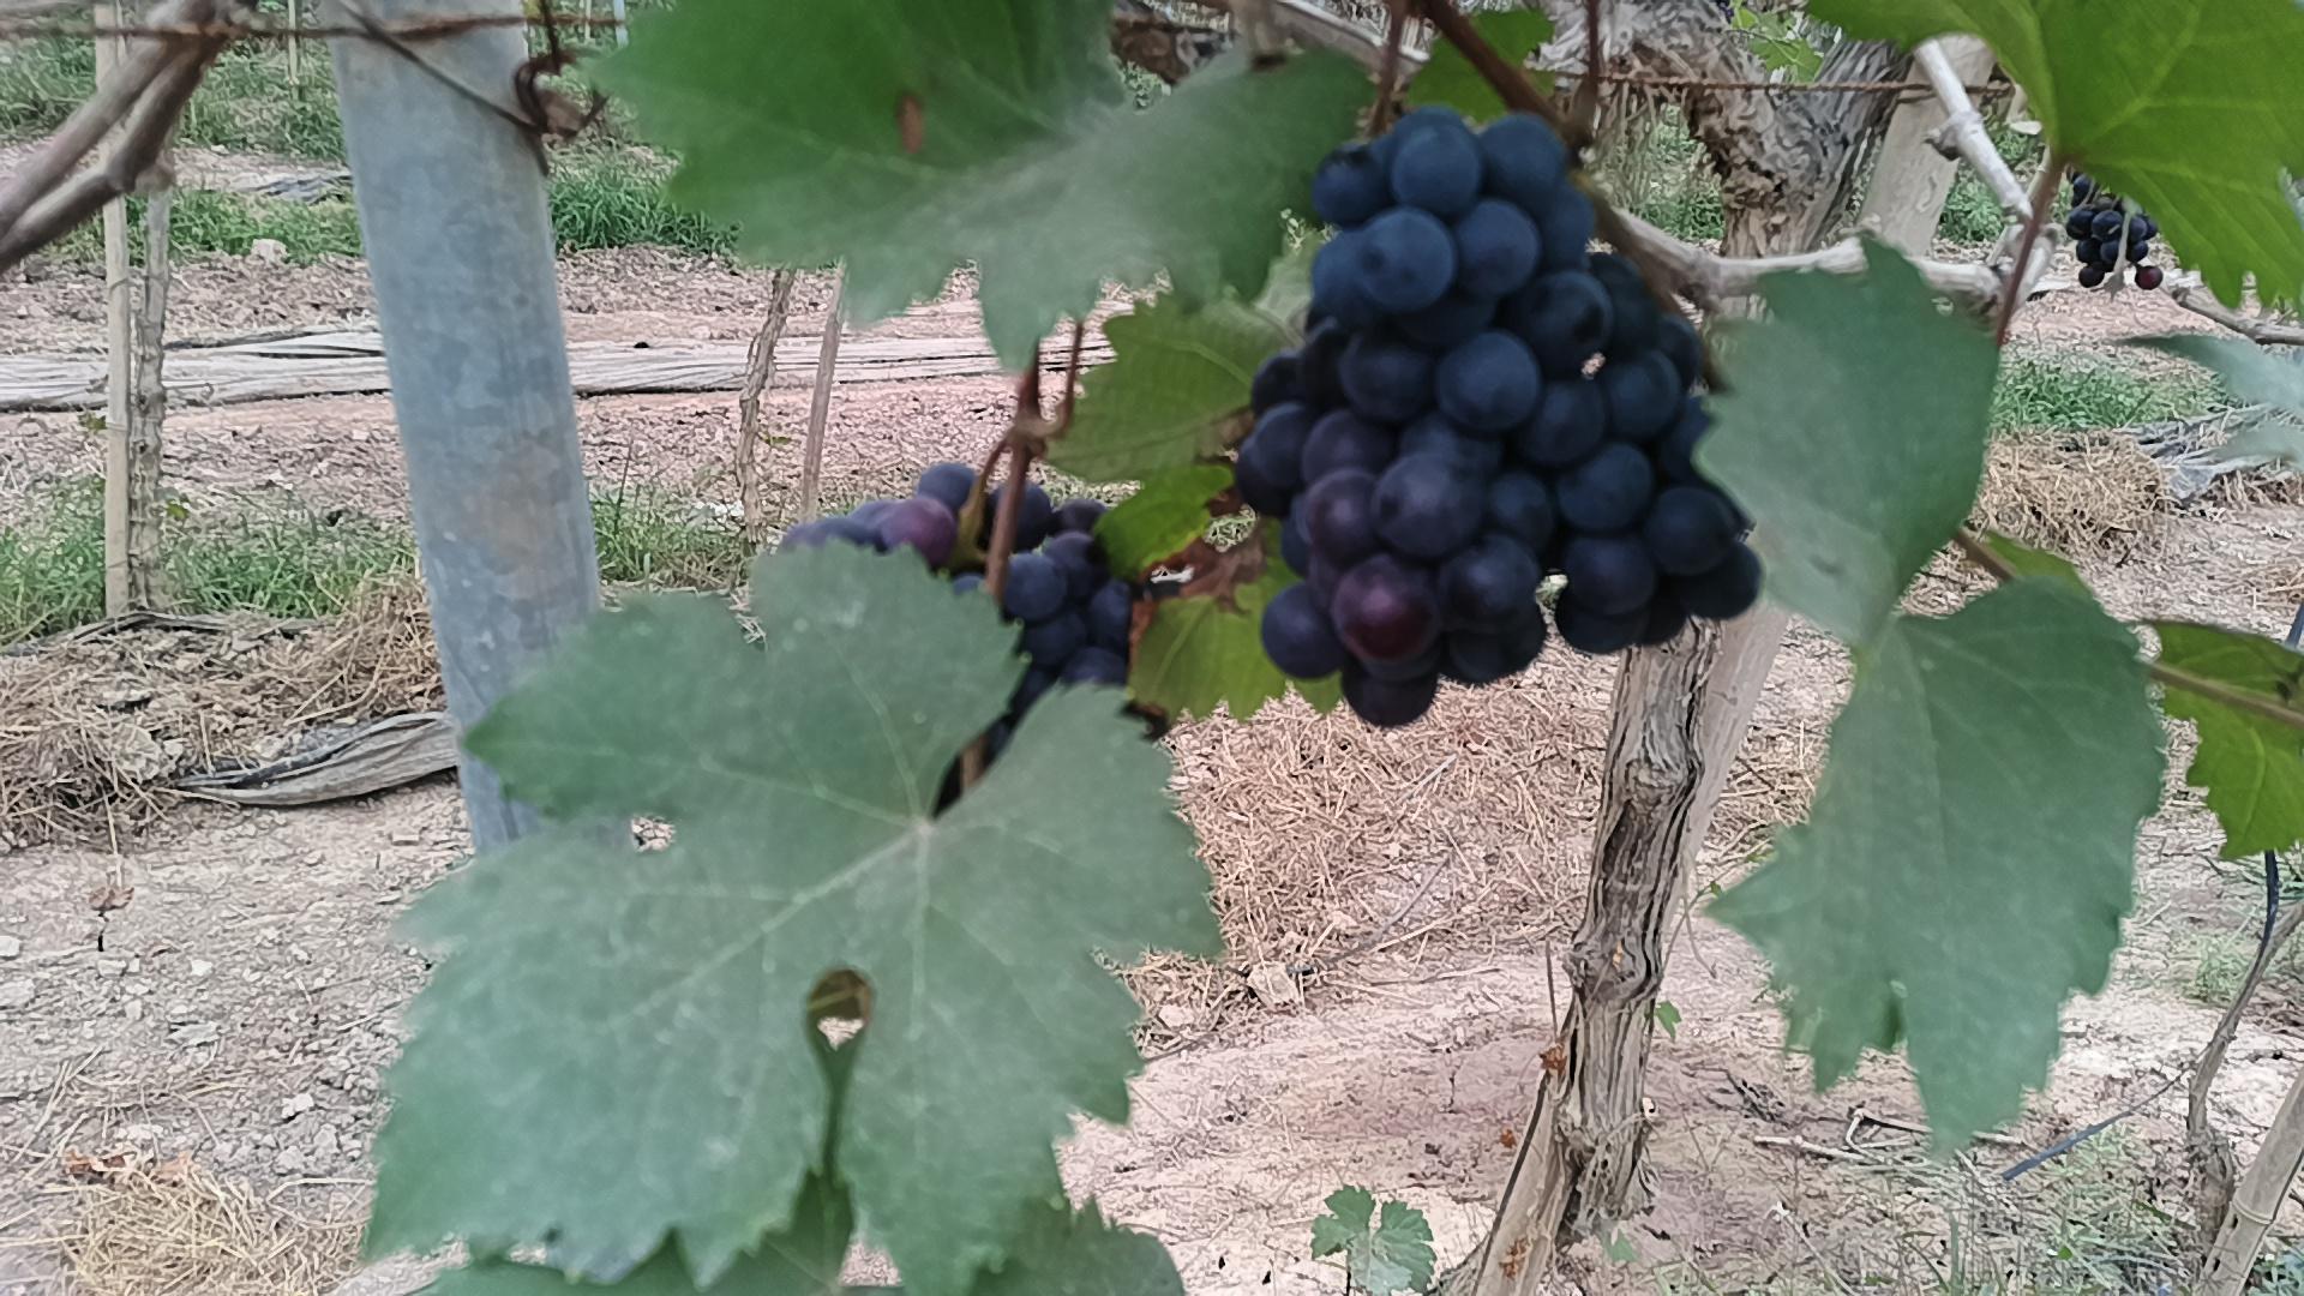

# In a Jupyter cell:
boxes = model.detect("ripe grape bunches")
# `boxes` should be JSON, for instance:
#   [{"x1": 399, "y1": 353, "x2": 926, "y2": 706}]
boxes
[
  {"x1": 774, "y1": 462, "x2": 1134, "y2": 689},
  {"x1": 1234, "y1": 108, "x2": 1760, "y2": 726},
  {"x1": 2064, "y1": 174, "x2": 2162, "y2": 289}
]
